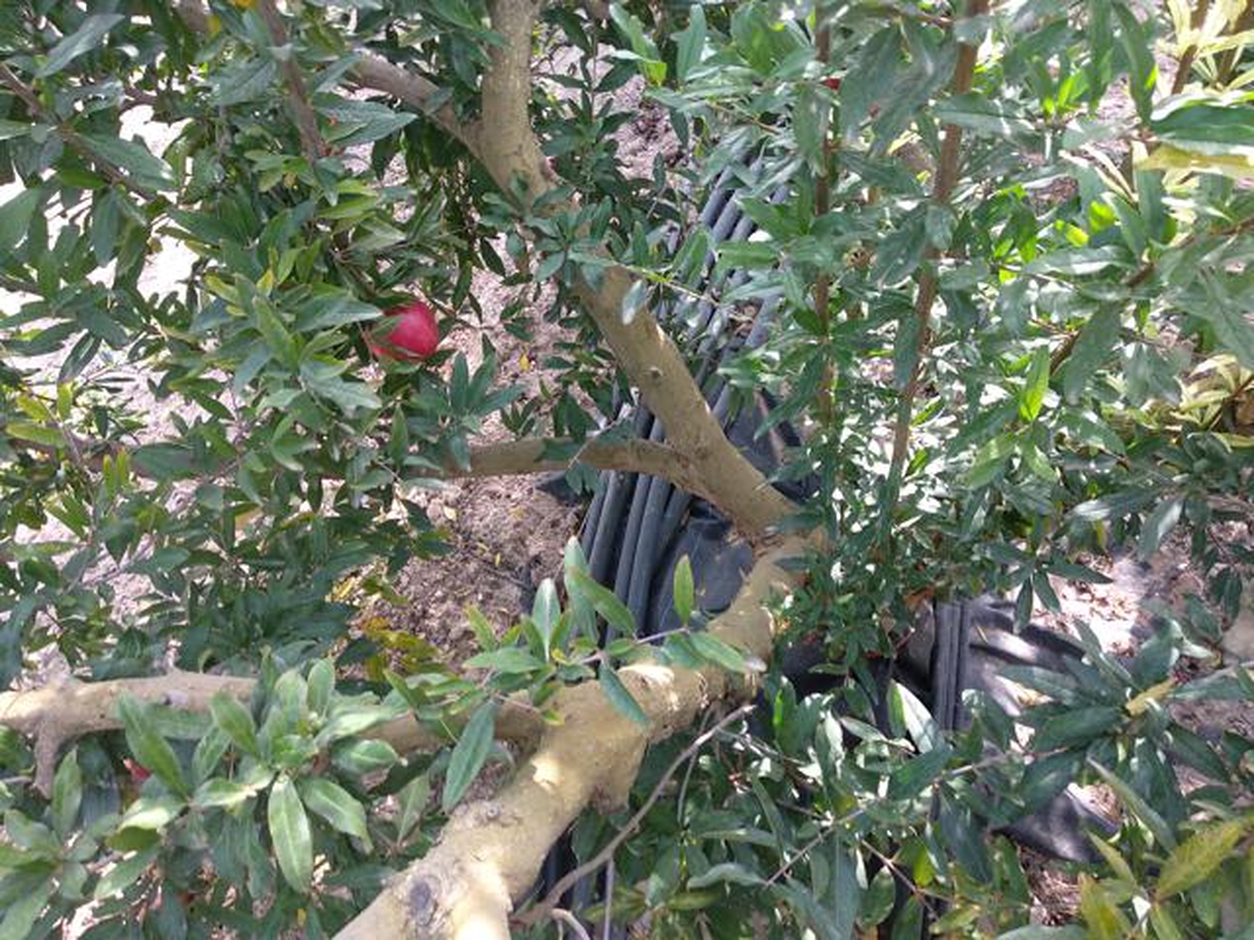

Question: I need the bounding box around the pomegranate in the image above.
[370,302,439,360]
